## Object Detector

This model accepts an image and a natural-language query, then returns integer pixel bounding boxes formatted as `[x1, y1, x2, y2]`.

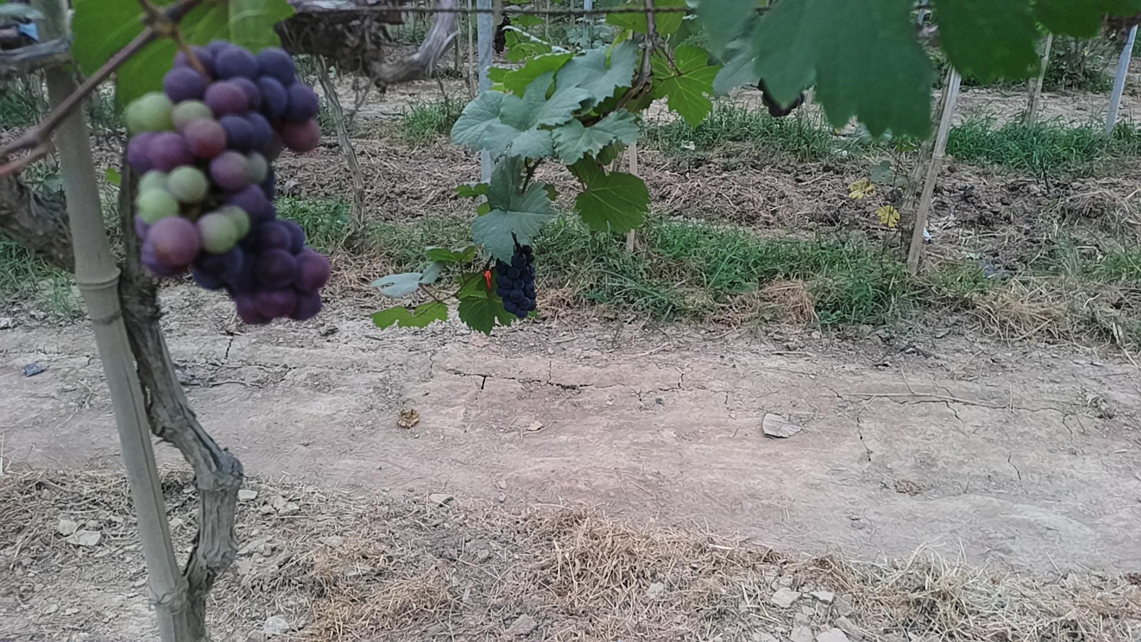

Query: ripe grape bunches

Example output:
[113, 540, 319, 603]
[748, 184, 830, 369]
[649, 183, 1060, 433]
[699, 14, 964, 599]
[490, 234, 535, 319]
[756, 78, 804, 117]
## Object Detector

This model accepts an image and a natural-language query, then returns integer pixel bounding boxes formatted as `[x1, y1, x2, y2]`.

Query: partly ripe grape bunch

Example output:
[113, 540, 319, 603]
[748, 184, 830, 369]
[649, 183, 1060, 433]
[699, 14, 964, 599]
[125, 40, 330, 323]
